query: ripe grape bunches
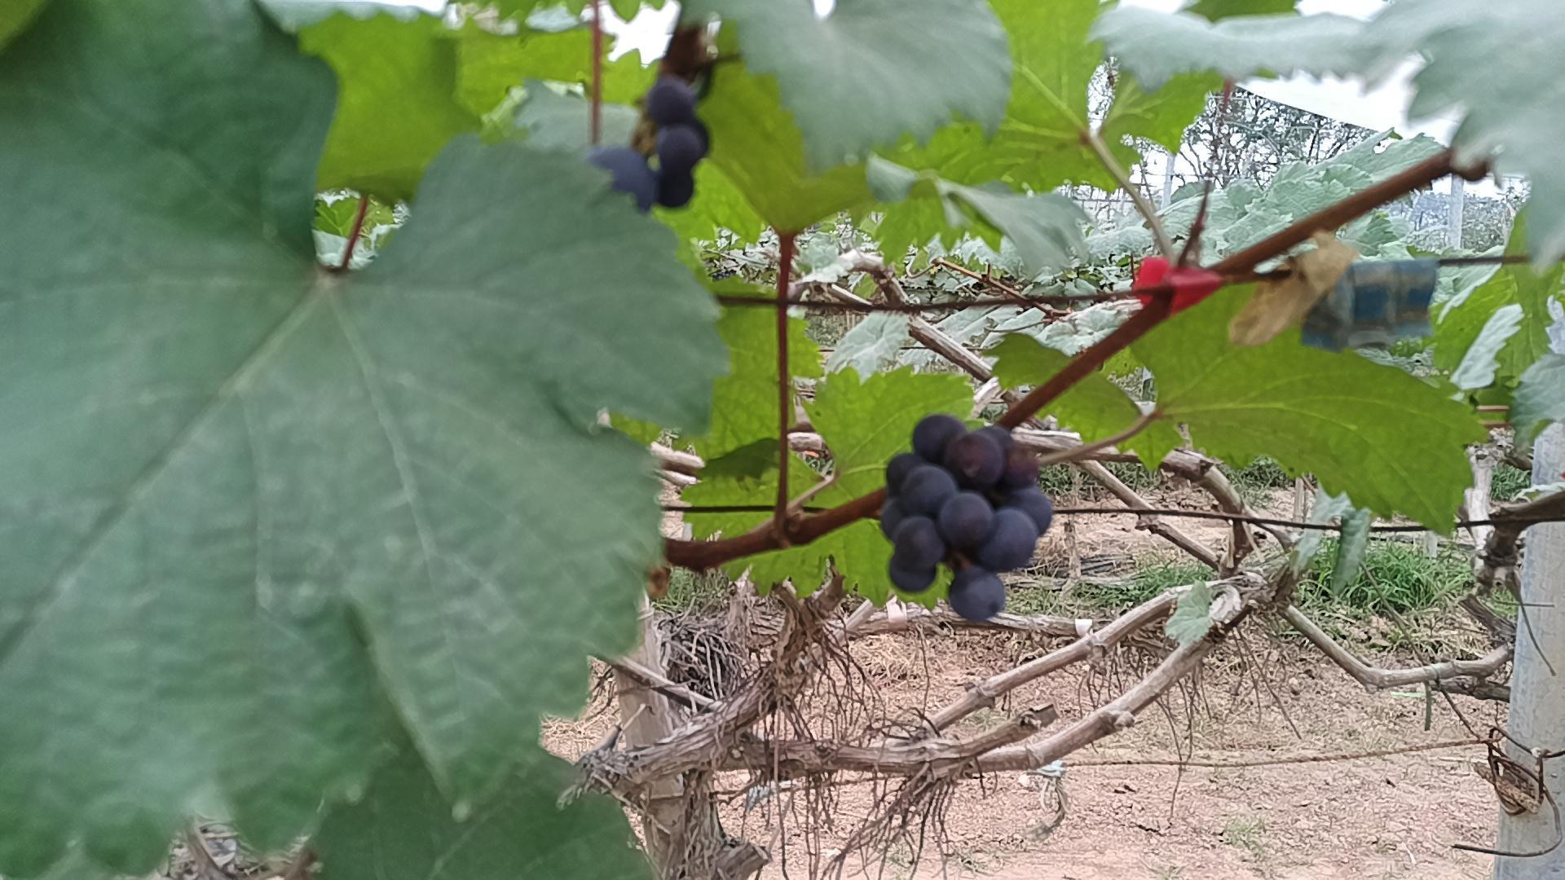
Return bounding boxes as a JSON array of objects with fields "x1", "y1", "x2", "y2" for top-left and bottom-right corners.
[
  {"x1": 589, "y1": 26, "x2": 716, "y2": 211},
  {"x1": 879, "y1": 414, "x2": 1051, "y2": 622}
]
